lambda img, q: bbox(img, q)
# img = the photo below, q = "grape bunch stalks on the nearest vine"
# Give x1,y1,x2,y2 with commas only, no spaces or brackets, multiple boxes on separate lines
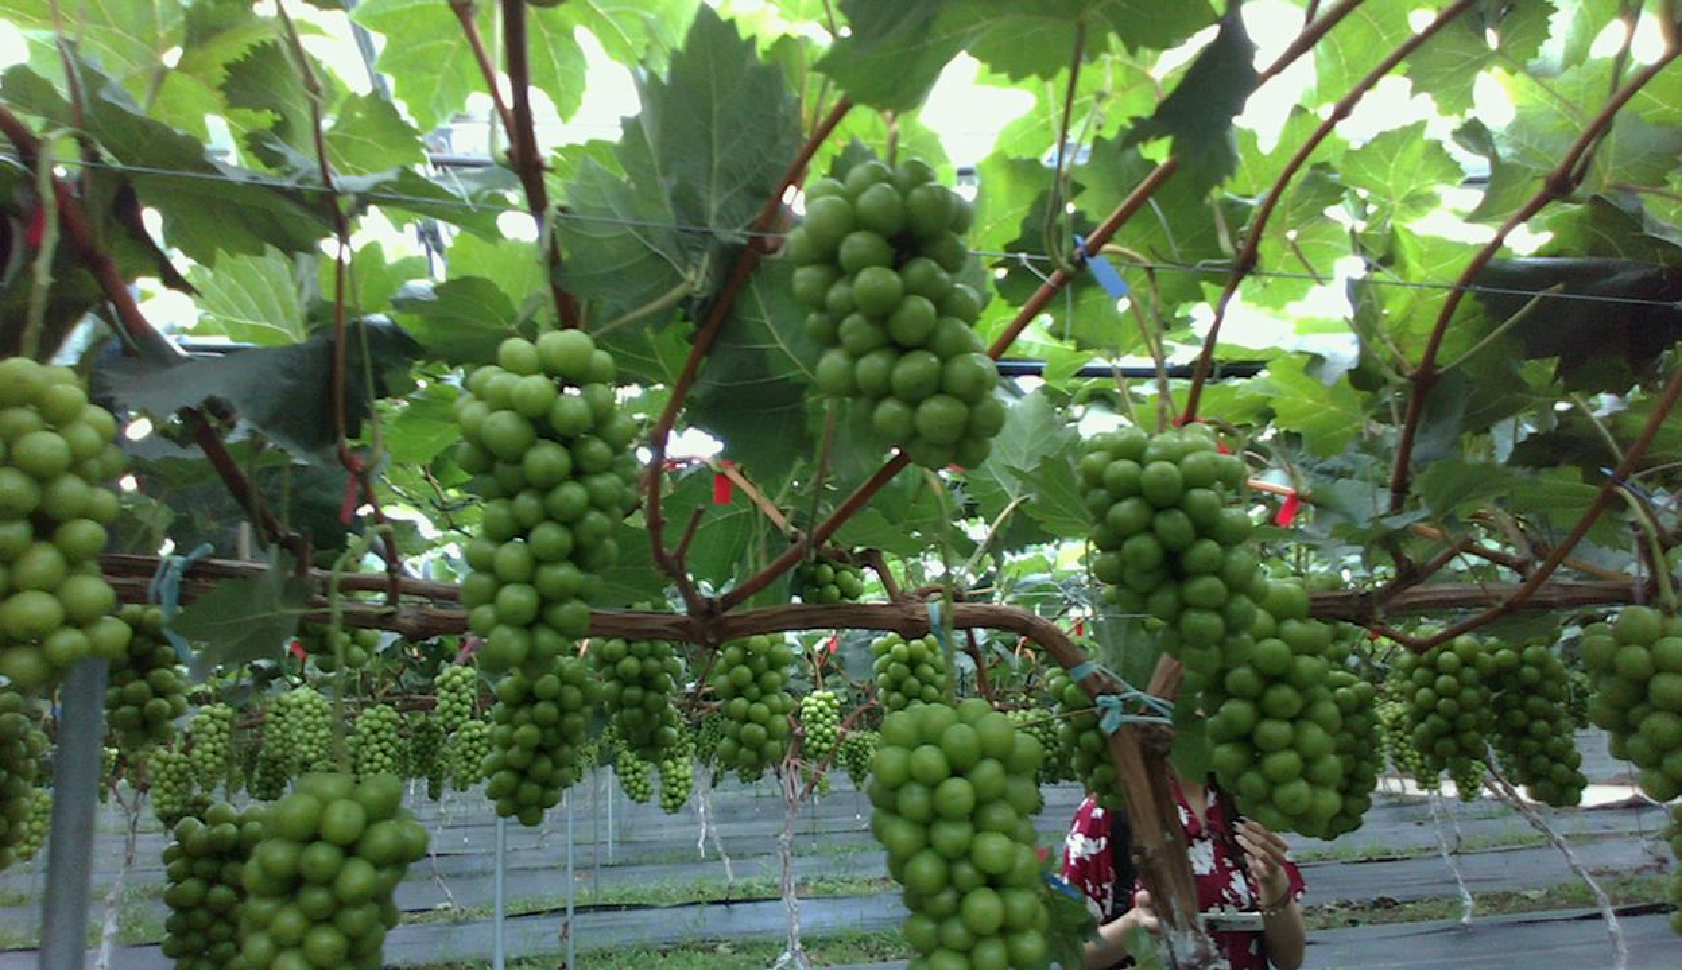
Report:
911,470,954,703
1617,489,1678,613
328,523,385,773
22,125,104,357
539,199,573,325
1150,271,1169,431
884,113,898,168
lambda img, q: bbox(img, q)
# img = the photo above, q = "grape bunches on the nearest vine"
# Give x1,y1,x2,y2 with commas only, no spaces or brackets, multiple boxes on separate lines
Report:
1201,575,1342,835
450,330,640,679
0,358,129,688
240,772,430,969
1077,423,1267,691
865,698,1050,969
1574,604,1681,800
787,160,1008,470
